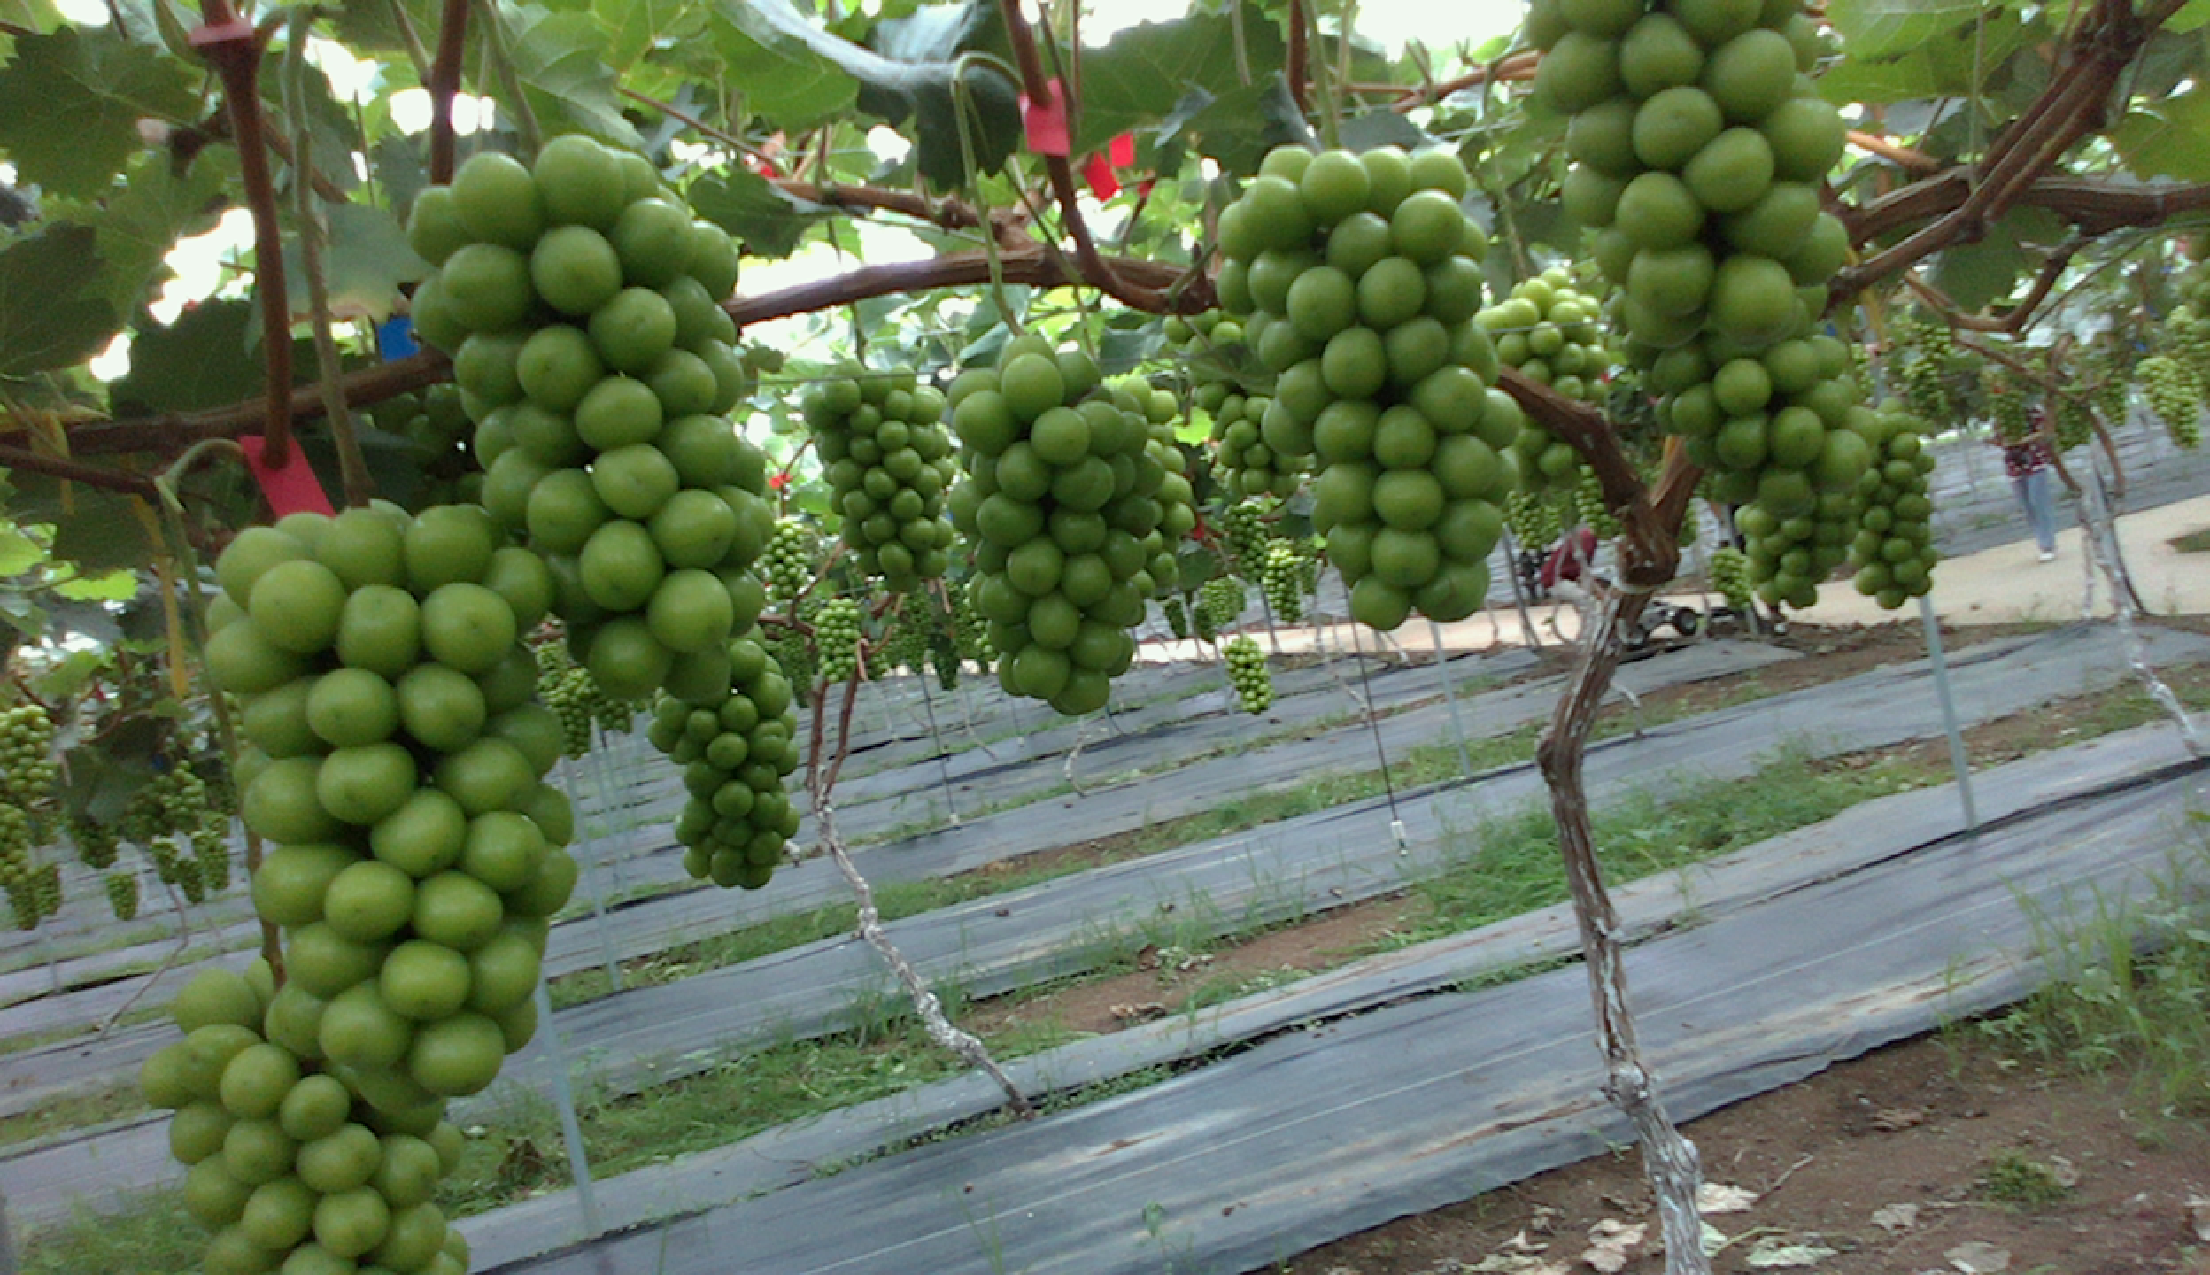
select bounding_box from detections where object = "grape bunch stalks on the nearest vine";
[1298,0,1339,147]
[953,53,1024,333]
[260,4,372,505]
[158,436,285,986]
[475,4,544,165]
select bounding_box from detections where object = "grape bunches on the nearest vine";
[140,958,473,1273]
[207,501,579,1112]
[1528,0,1842,349]
[1627,283,1877,519]
[404,131,774,707]
[1218,147,1523,632]
[940,335,1160,717]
